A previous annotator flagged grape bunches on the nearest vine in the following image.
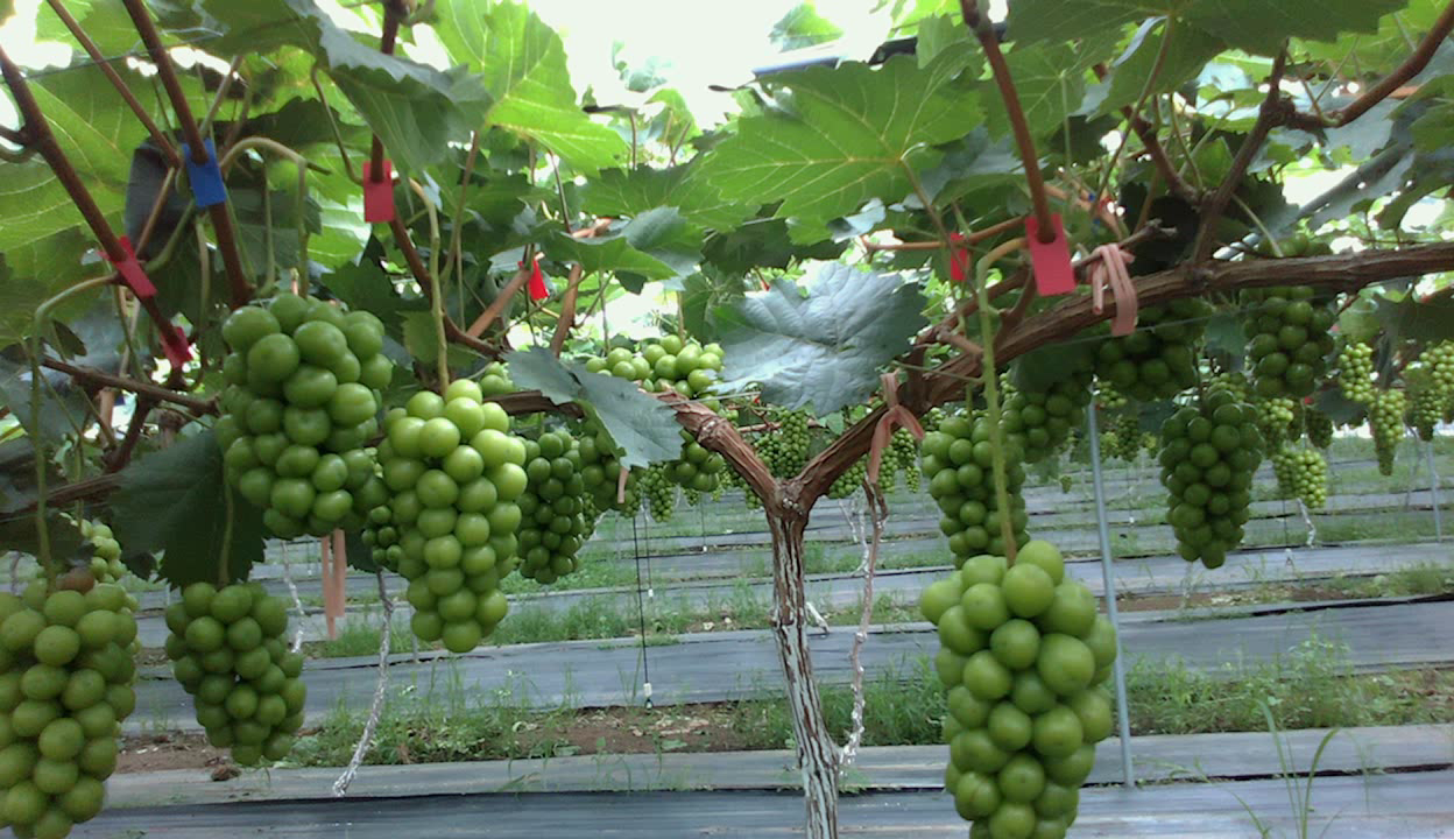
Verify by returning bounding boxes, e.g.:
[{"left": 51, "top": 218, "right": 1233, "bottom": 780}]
[
  {"left": 213, "top": 294, "right": 393, "bottom": 540},
  {"left": 1, "top": 566, "right": 137, "bottom": 838},
  {"left": 918, "top": 541, "right": 1118, "bottom": 838},
  {"left": 376, "top": 379, "right": 528, "bottom": 655},
  {"left": 162, "top": 583, "right": 308, "bottom": 766}
]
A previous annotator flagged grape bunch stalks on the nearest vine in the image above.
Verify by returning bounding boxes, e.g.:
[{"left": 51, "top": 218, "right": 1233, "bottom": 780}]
[
  {"left": 29, "top": 274, "right": 119, "bottom": 594},
  {"left": 409, "top": 176, "right": 450, "bottom": 395},
  {"left": 216, "top": 454, "right": 234, "bottom": 591},
  {"left": 976, "top": 237, "right": 1028, "bottom": 569},
  {"left": 220, "top": 138, "right": 310, "bottom": 298}
]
